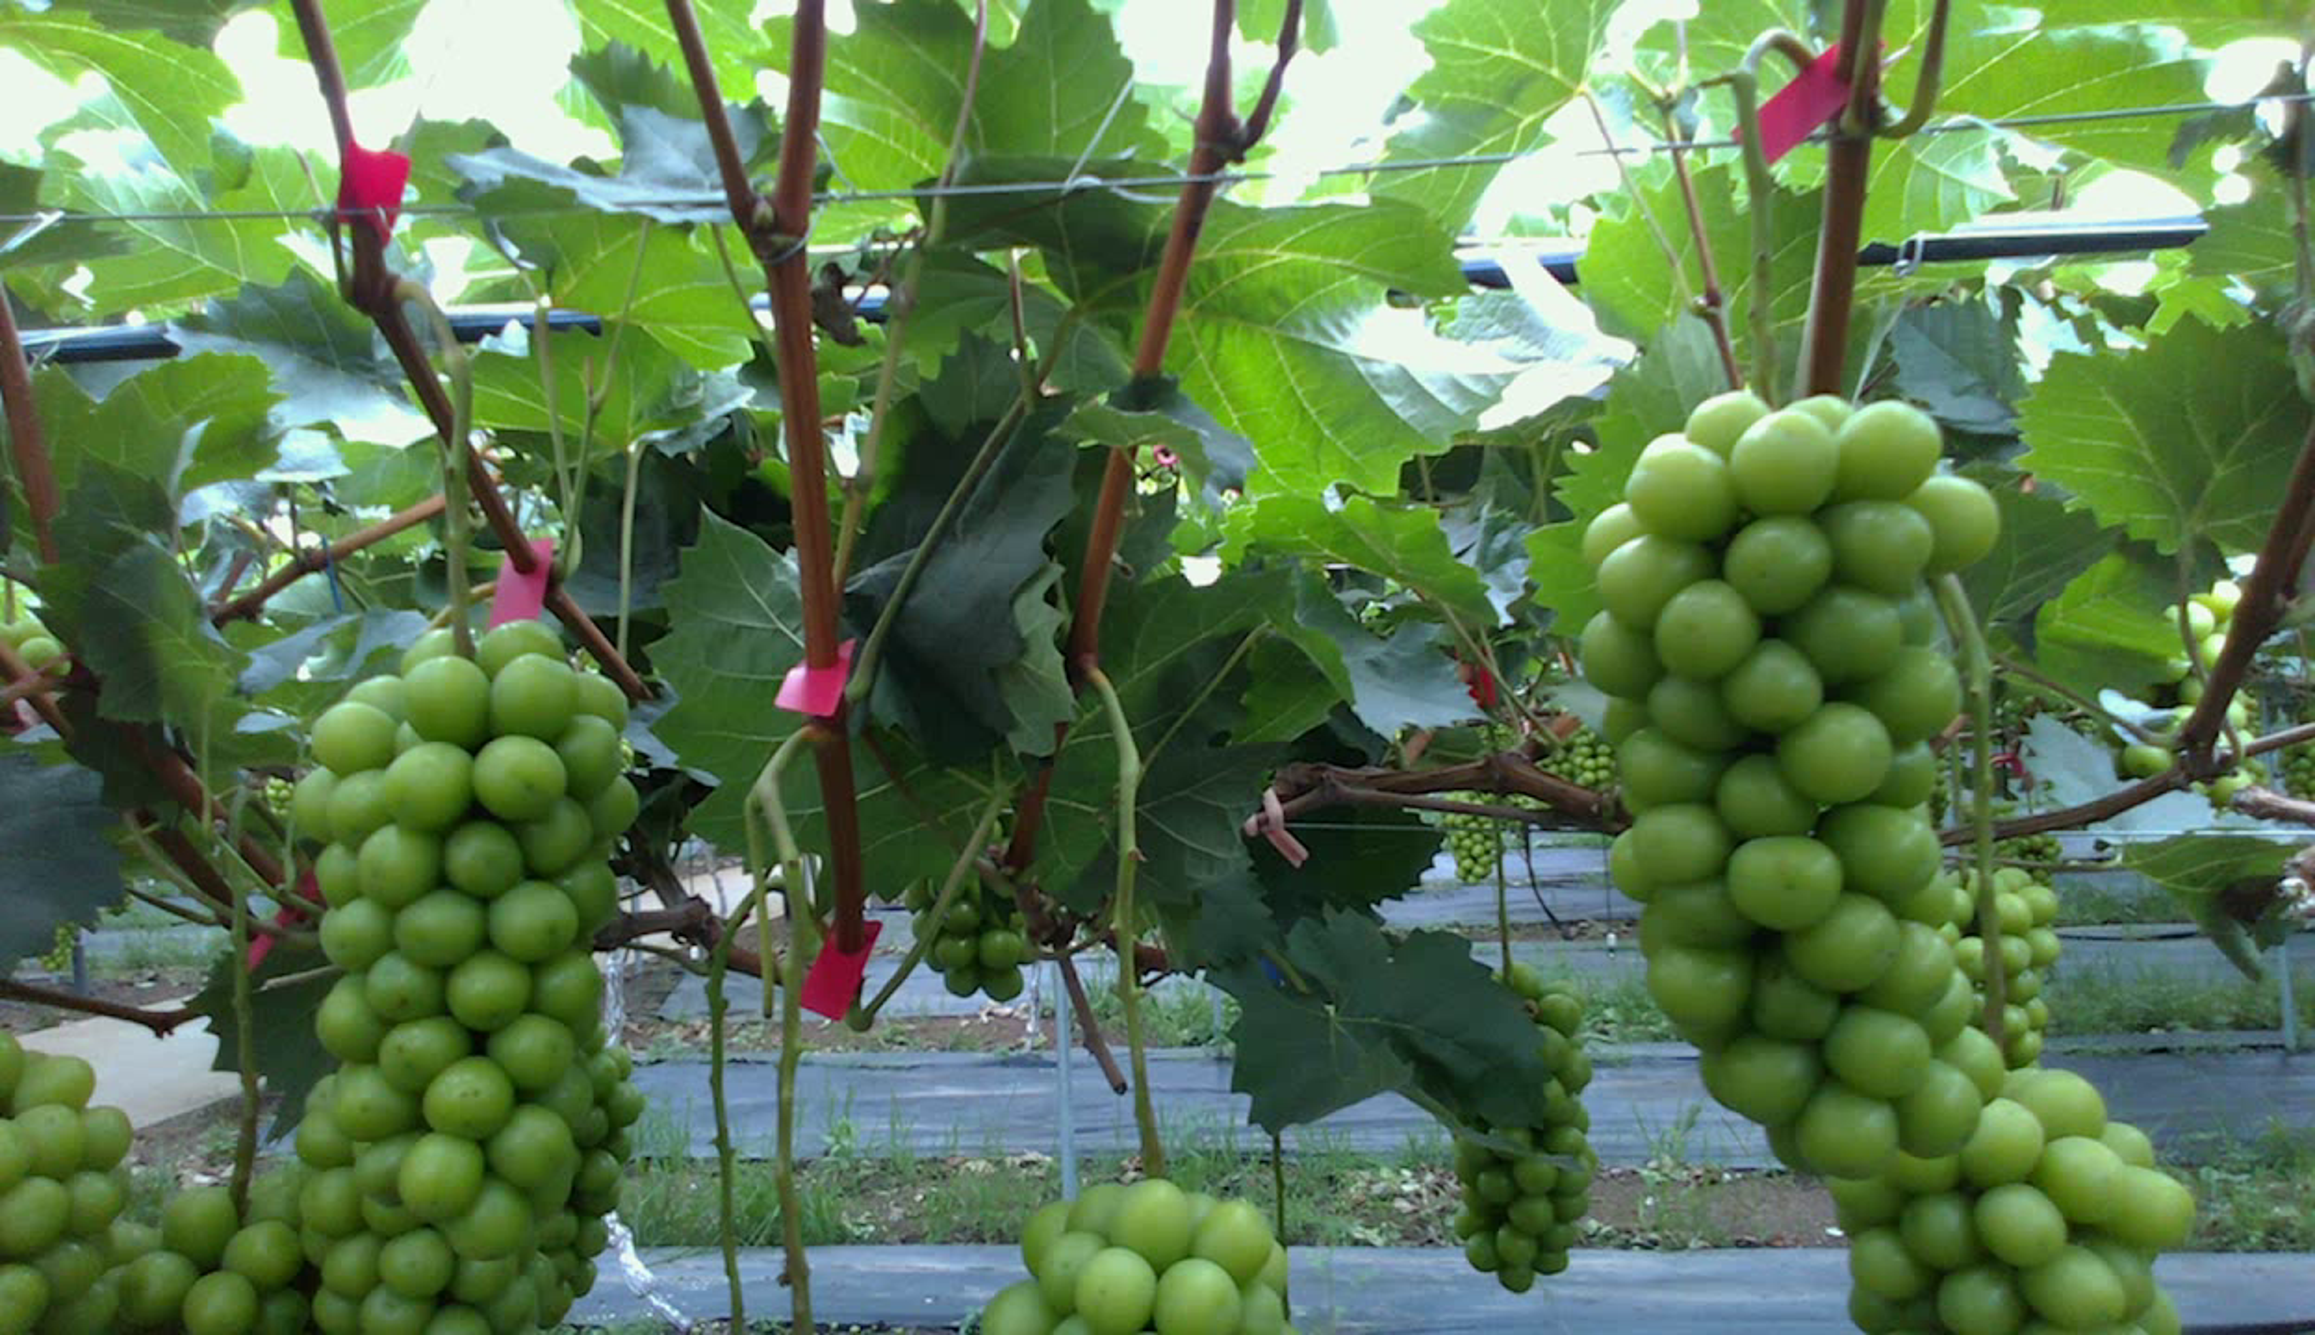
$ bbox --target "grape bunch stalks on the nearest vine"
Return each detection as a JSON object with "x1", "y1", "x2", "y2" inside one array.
[
  {"x1": 1078, "y1": 653, "x2": 1169, "y2": 1181},
  {"x1": 1731, "y1": 28, "x2": 1814, "y2": 408},
  {"x1": 1940, "y1": 575, "x2": 2009, "y2": 1062},
  {"x1": 395, "y1": 273, "x2": 477, "y2": 660},
  {"x1": 223, "y1": 786, "x2": 260, "y2": 1227}
]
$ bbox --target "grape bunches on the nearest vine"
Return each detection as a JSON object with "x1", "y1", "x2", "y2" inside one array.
[
  {"x1": 100, "y1": 1174, "x2": 310, "y2": 1333},
  {"x1": 1580, "y1": 389, "x2": 2007, "y2": 1183},
  {"x1": 1822, "y1": 1064, "x2": 2194, "y2": 1333},
  {"x1": 2, "y1": 1029, "x2": 134, "y2": 1333},
  {"x1": 979, "y1": 1179, "x2": 1287, "y2": 1333},
  {"x1": 293, "y1": 617, "x2": 642, "y2": 1333}
]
